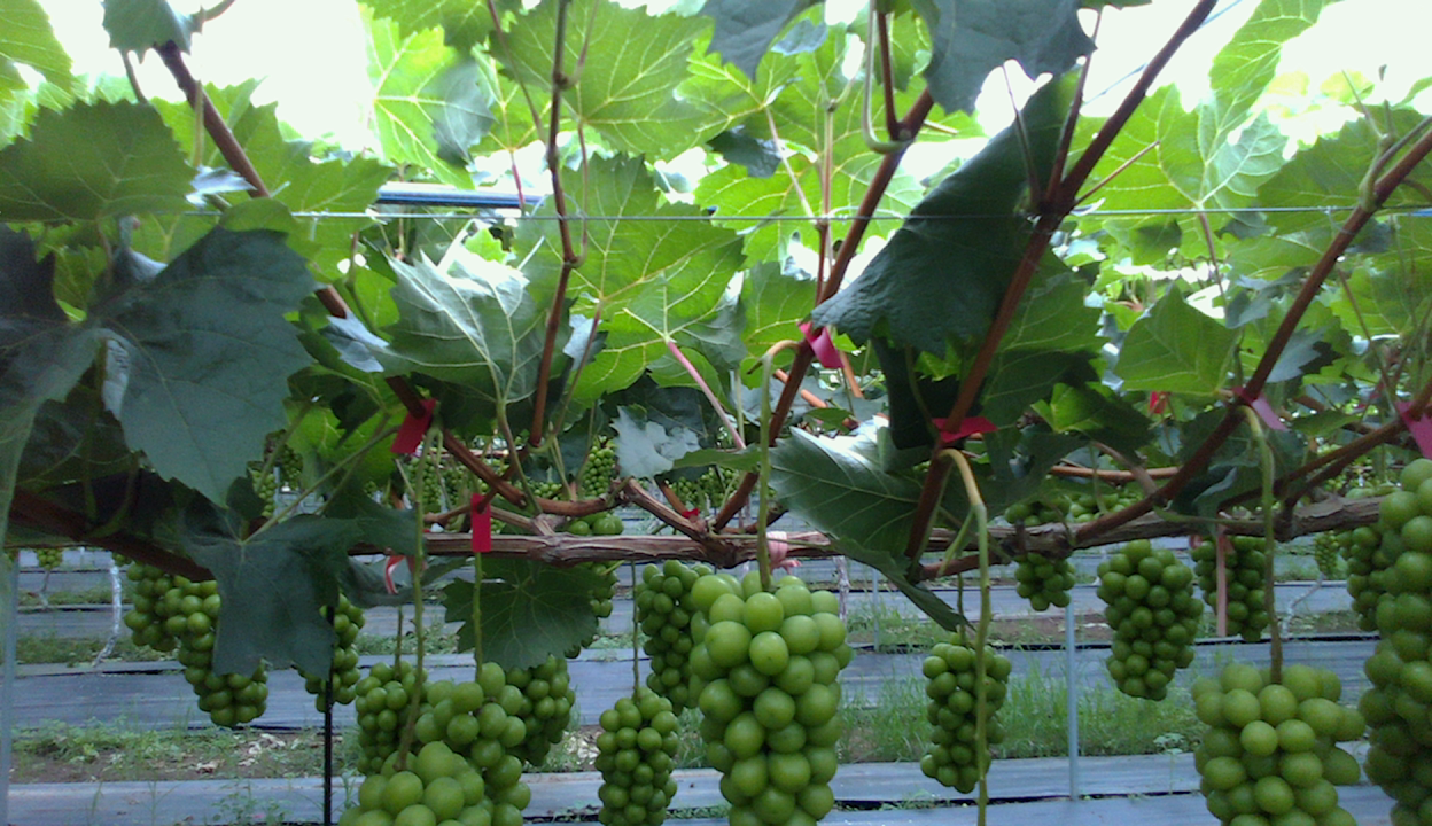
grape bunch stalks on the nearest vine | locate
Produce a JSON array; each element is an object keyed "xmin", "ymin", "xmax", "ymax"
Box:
[
  {"xmin": 396, "ymin": 418, "xmax": 442, "ymax": 770},
  {"xmin": 756, "ymin": 338, "xmax": 802, "ymax": 590},
  {"xmin": 939, "ymin": 449, "xmax": 993, "ymax": 825},
  {"xmin": 1238, "ymin": 405, "xmax": 1283, "ymax": 687},
  {"xmin": 474, "ymin": 554, "xmax": 481, "ymax": 684}
]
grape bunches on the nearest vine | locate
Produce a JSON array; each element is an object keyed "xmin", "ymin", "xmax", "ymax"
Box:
[
  {"xmin": 688, "ymin": 572, "xmax": 851, "ymax": 825},
  {"xmin": 338, "ymin": 741, "xmax": 491, "ymax": 825},
  {"xmin": 418, "ymin": 663, "xmax": 530, "ymax": 825},
  {"xmin": 1191, "ymin": 662, "xmax": 1367, "ymax": 825},
  {"xmin": 1359, "ymin": 459, "xmax": 1431, "ymax": 825}
]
